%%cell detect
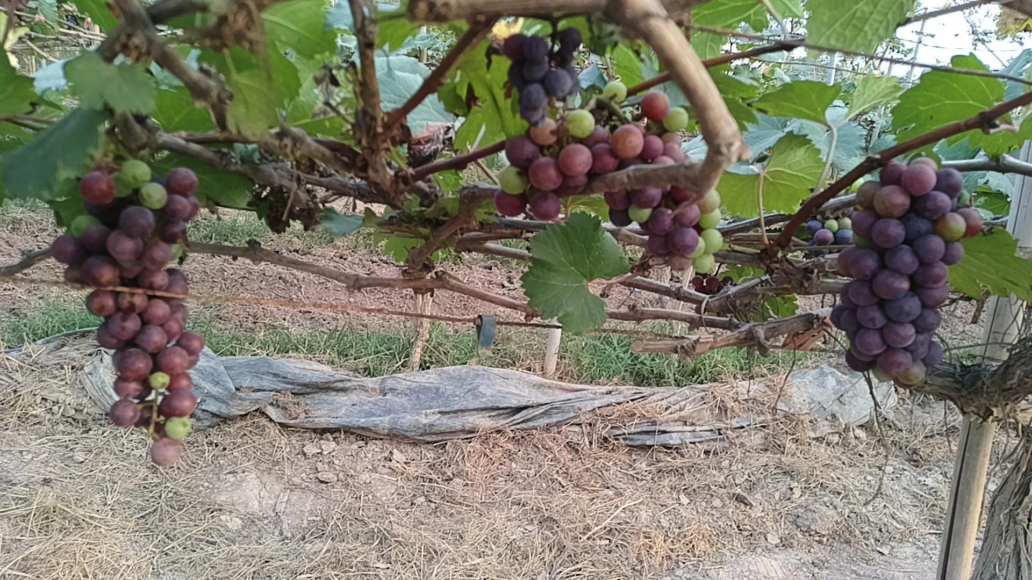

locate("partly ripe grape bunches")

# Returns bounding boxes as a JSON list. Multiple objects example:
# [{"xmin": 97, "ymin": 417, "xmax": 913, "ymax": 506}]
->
[
  {"xmin": 494, "ymin": 81, "xmax": 723, "ymax": 272},
  {"xmin": 806, "ymin": 218, "xmax": 852, "ymax": 245},
  {"xmin": 49, "ymin": 160, "xmax": 204, "ymax": 466}
]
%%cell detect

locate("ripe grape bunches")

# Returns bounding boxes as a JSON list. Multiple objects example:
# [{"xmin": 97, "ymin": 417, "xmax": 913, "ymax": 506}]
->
[
  {"xmin": 690, "ymin": 274, "xmax": 734, "ymax": 294},
  {"xmin": 830, "ymin": 157, "xmax": 982, "ymax": 384},
  {"xmin": 501, "ymin": 27, "xmax": 582, "ymax": 127}
]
